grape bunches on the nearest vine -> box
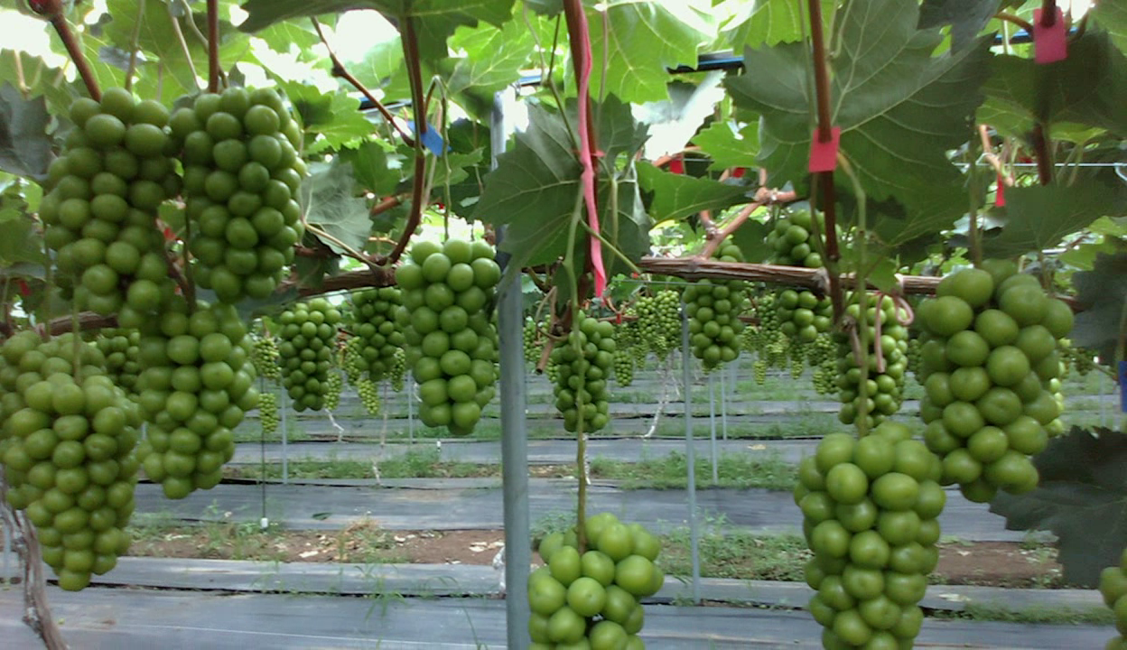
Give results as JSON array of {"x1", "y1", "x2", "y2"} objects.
[
  {"x1": 527, "y1": 512, "x2": 664, "y2": 648},
  {"x1": 395, "y1": 240, "x2": 501, "y2": 436},
  {"x1": 0, "y1": 327, "x2": 72, "y2": 455},
  {"x1": 793, "y1": 422, "x2": 946, "y2": 649},
  {"x1": 0, "y1": 363, "x2": 141, "y2": 592},
  {"x1": 168, "y1": 88, "x2": 308, "y2": 303},
  {"x1": 37, "y1": 87, "x2": 183, "y2": 331},
  {"x1": 135, "y1": 294, "x2": 260, "y2": 500},
  {"x1": 917, "y1": 257, "x2": 1076, "y2": 505}
]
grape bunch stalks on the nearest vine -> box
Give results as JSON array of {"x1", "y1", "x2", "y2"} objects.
[
  {"x1": 125, "y1": 0, "x2": 144, "y2": 95},
  {"x1": 424, "y1": 75, "x2": 452, "y2": 243},
  {"x1": 70, "y1": 274, "x2": 81, "y2": 386},
  {"x1": 177, "y1": 0, "x2": 230, "y2": 88},
  {"x1": 42, "y1": 222, "x2": 50, "y2": 341},
  {"x1": 561, "y1": 179, "x2": 588, "y2": 555},
  {"x1": 181, "y1": 207, "x2": 195, "y2": 315},
  {"x1": 967, "y1": 110, "x2": 982, "y2": 270},
  {"x1": 837, "y1": 152, "x2": 869, "y2": 440}
]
